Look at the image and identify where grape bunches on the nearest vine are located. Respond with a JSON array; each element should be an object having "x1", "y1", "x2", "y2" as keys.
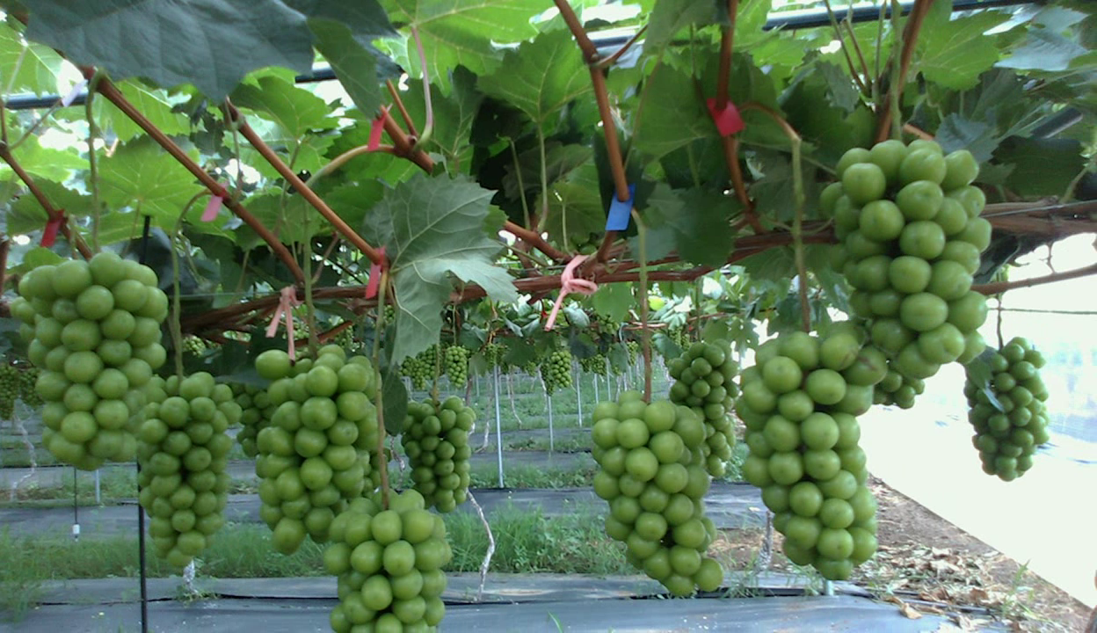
[
  {"x1": 589, "y1": 390, "x2": 723, "y2": 594},
  {"x1": 735, "y1": 319, "x2": 889, "y2": 579},
  {"x1": 253, "y1": 344, "x2": 375, "y2": 558},
  {"x1": 137, "y1": 372, "x2": 242, "y2": 568},
  {"x1": 14, "y1": 251, "x2": 166, "y2": 474},
  {"x1": 817, "y1": 139, "x2": 992, "y2": 378},
  {"x1": 321, "y1": 489, "x2": 452, "y2": 632}
]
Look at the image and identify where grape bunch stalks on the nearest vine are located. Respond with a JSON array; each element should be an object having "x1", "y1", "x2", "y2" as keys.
[
  {"x1": 86, "y1": 69, "x2": 105, "y2": 252},
  {"x1": 171, "y1": 190, "x2": 211, "y2": 383},
  {"x1": 301, "y1": 198, "x2": 316, "y2": 361},
  {"x1": 631, "y1": 208, "x2": 651, "y2": 403},
  {"x1": 372, "y1": 271, "x2": 389, "y2": 510},
  {"x1": 889, "y1": 2, "x2": 903, "y2": 139},
  {"x1": 741, "y1": 101, "x2": 810, "y2": 332}
]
